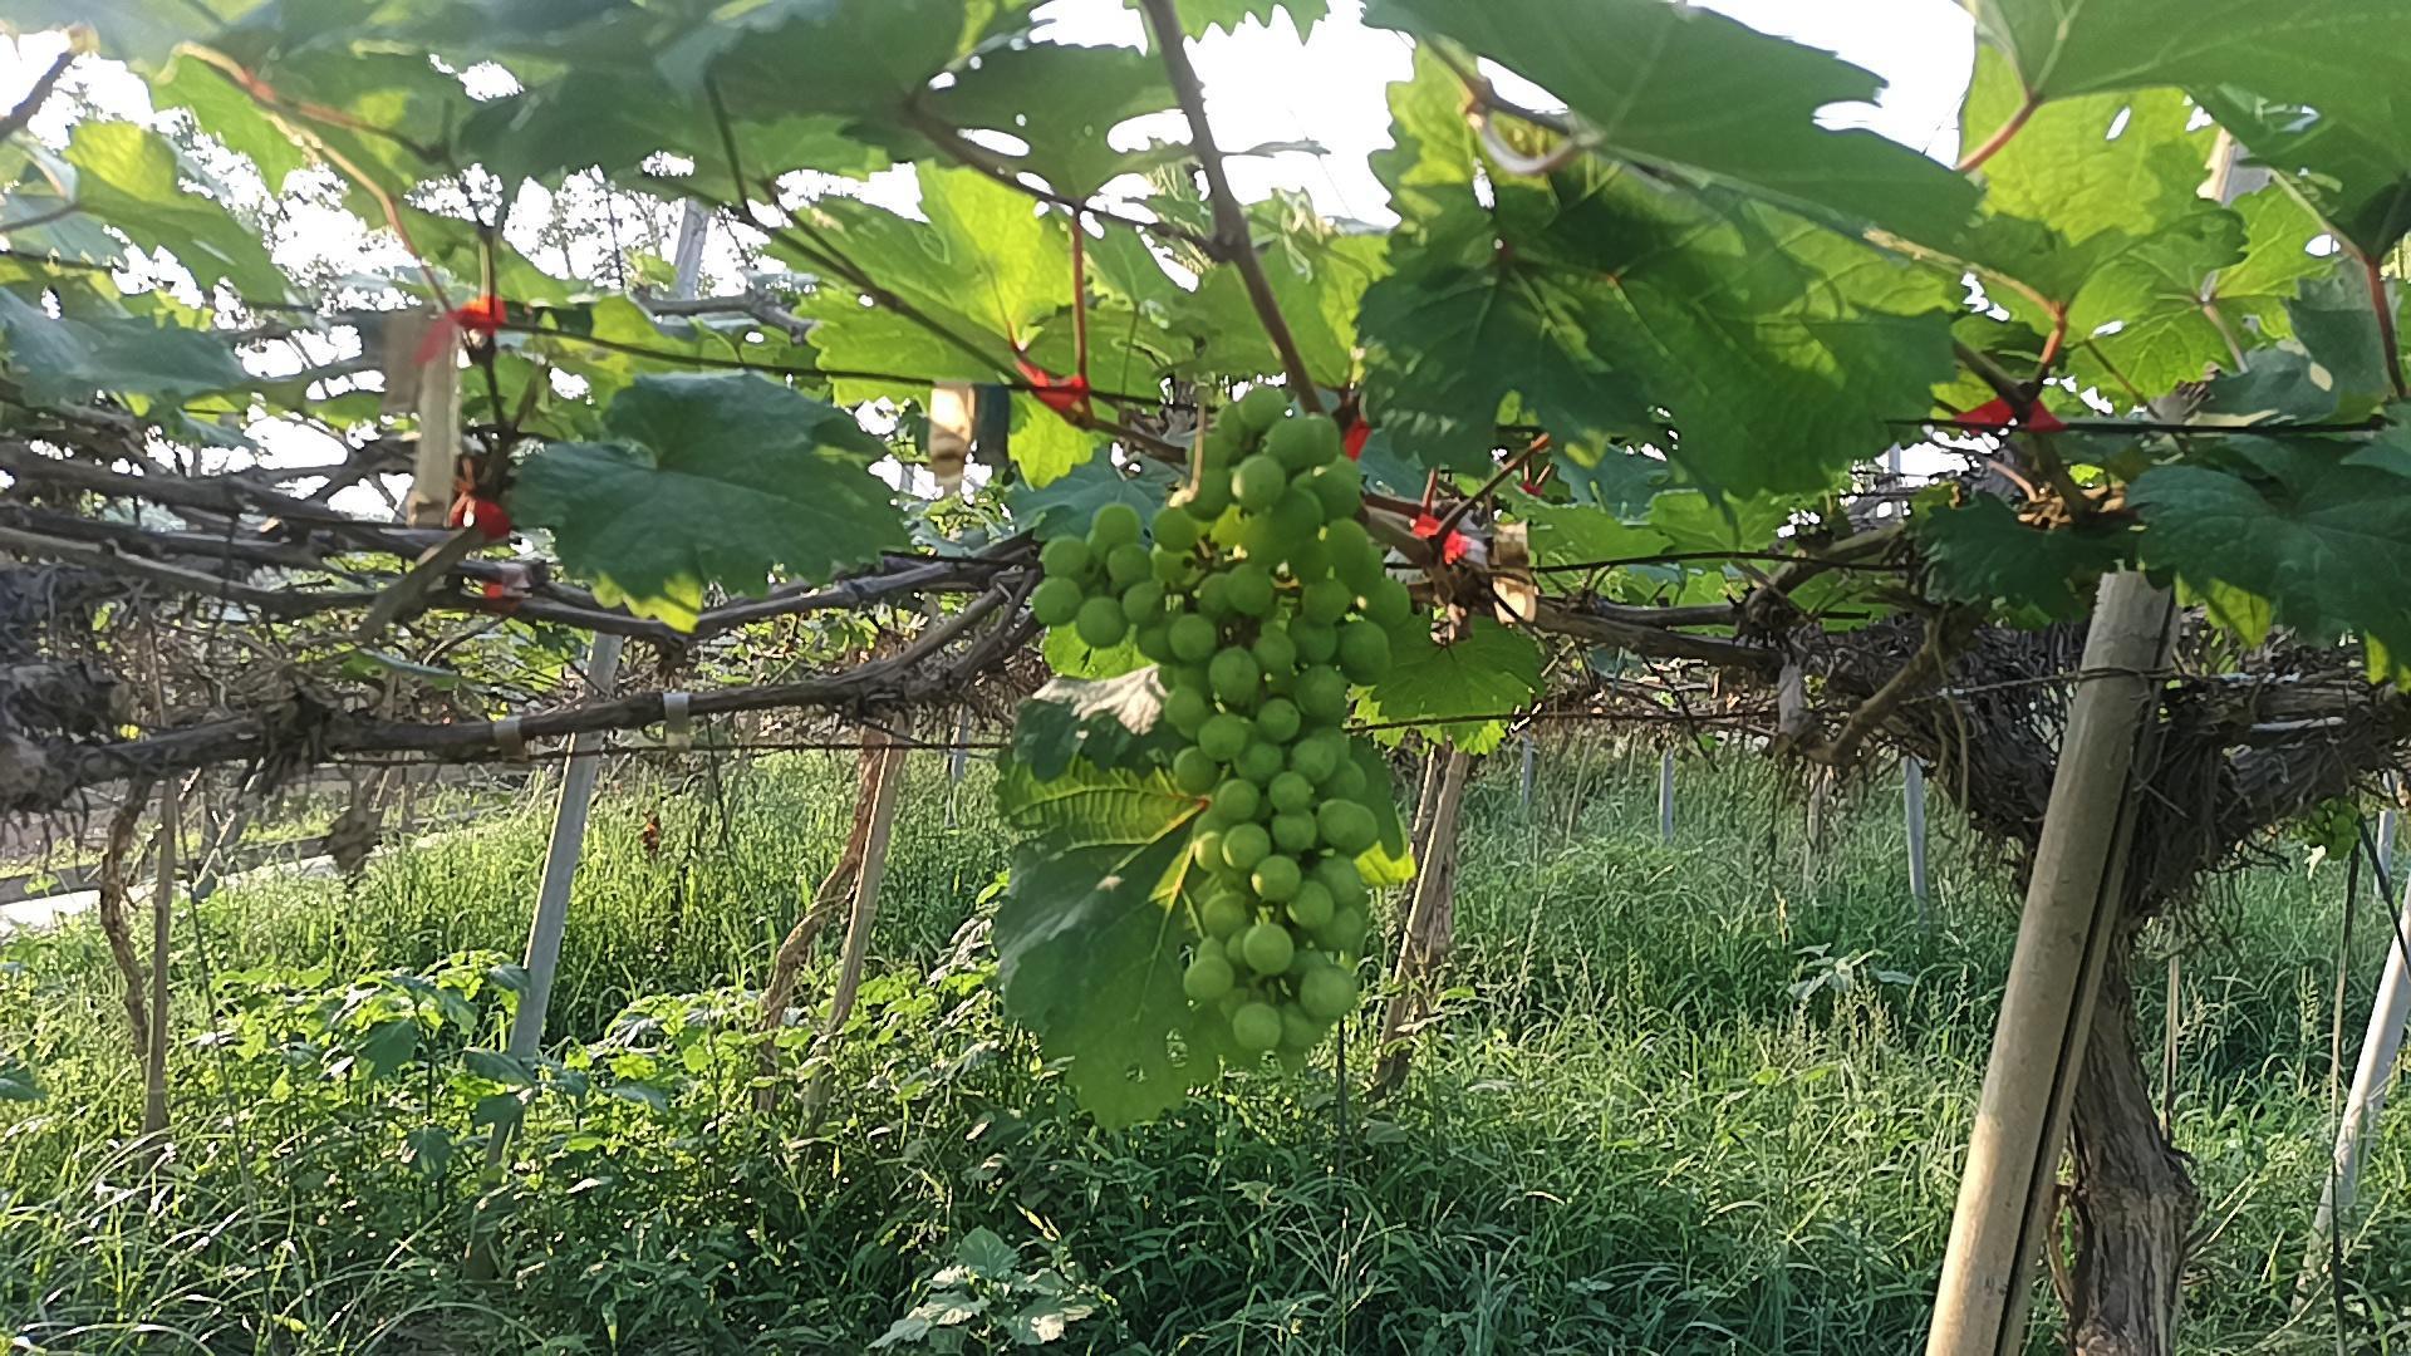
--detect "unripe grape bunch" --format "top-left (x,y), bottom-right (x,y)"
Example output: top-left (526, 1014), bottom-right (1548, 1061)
top-left (1031, 389), bottom-right (1413, 1056)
